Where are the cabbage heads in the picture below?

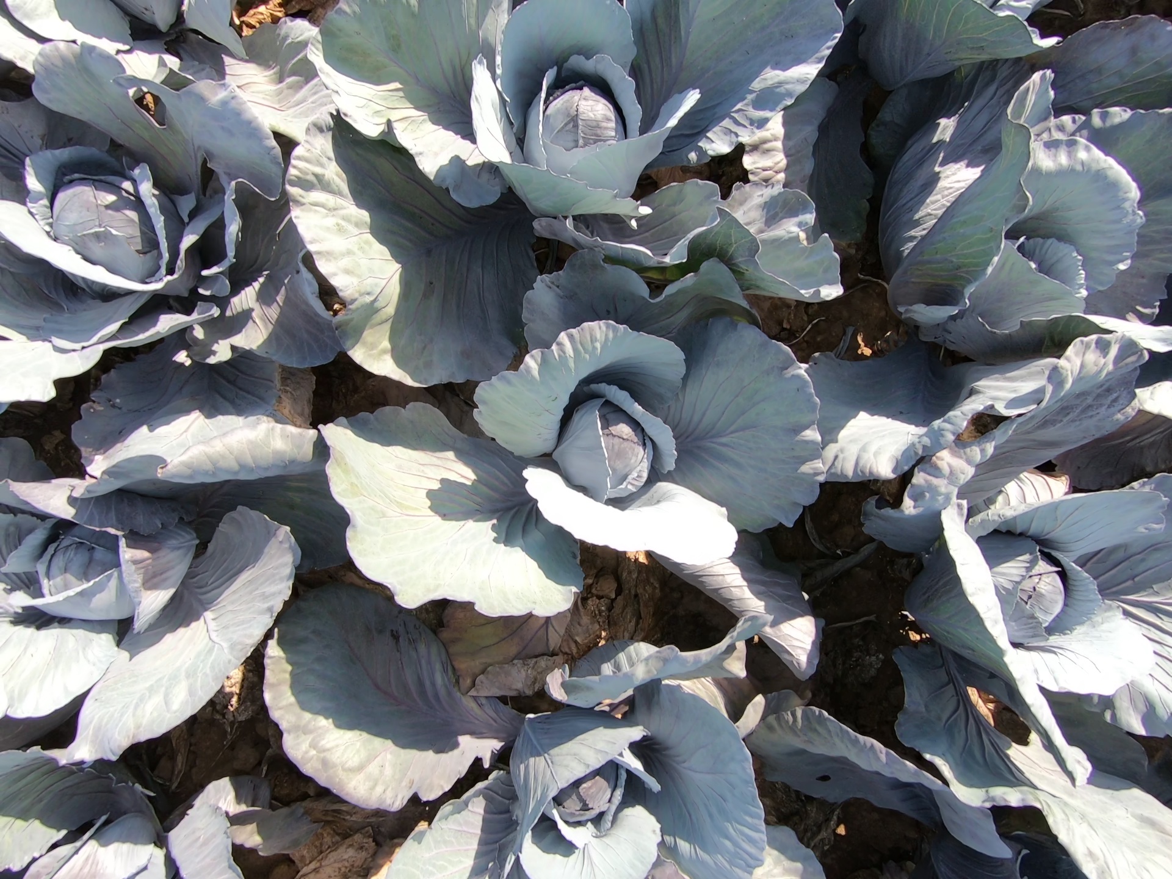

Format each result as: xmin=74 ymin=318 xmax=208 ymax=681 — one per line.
xmin=21 ymin=834 xmax=148 ymax=879
xmin=42 ymin=514 xmax=173 ymax=620
xmin=967 ymin=541 xmax=1066 ymax=633
xmin=513 ymin=715 xmax=621 ymax=823
xmin=535 ymin=85 xmax=627 ymax=195
xmin=566 ymin=400 xmax=655 ymax=496
xmin=52 ymin=173 xmax=172 ymax=281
